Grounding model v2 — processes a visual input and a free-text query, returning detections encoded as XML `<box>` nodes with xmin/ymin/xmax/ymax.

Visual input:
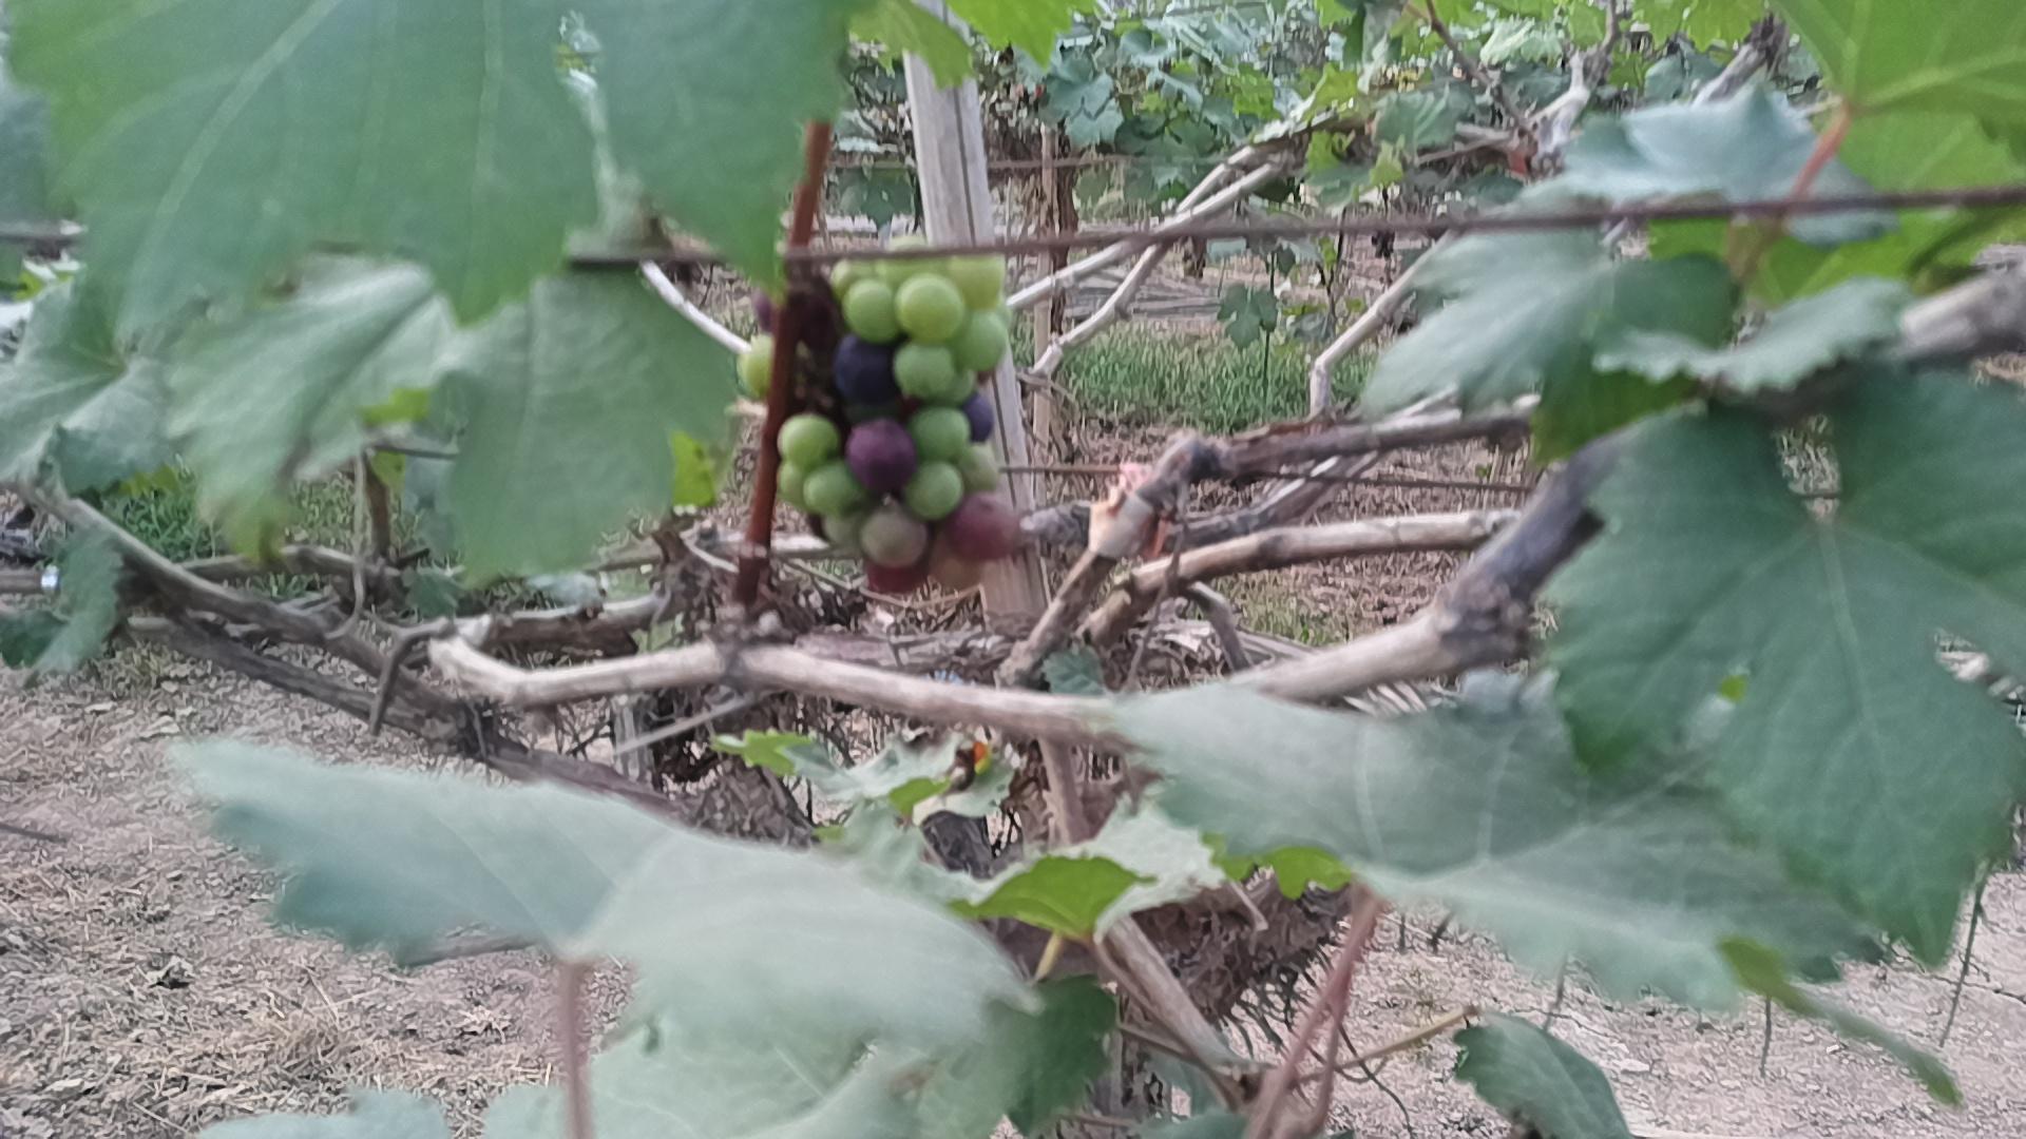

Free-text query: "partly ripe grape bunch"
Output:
<box><xmin>735</xmin><ymin>234</ymin><xmax>1022</xmax><ymax>595</ymax></box>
